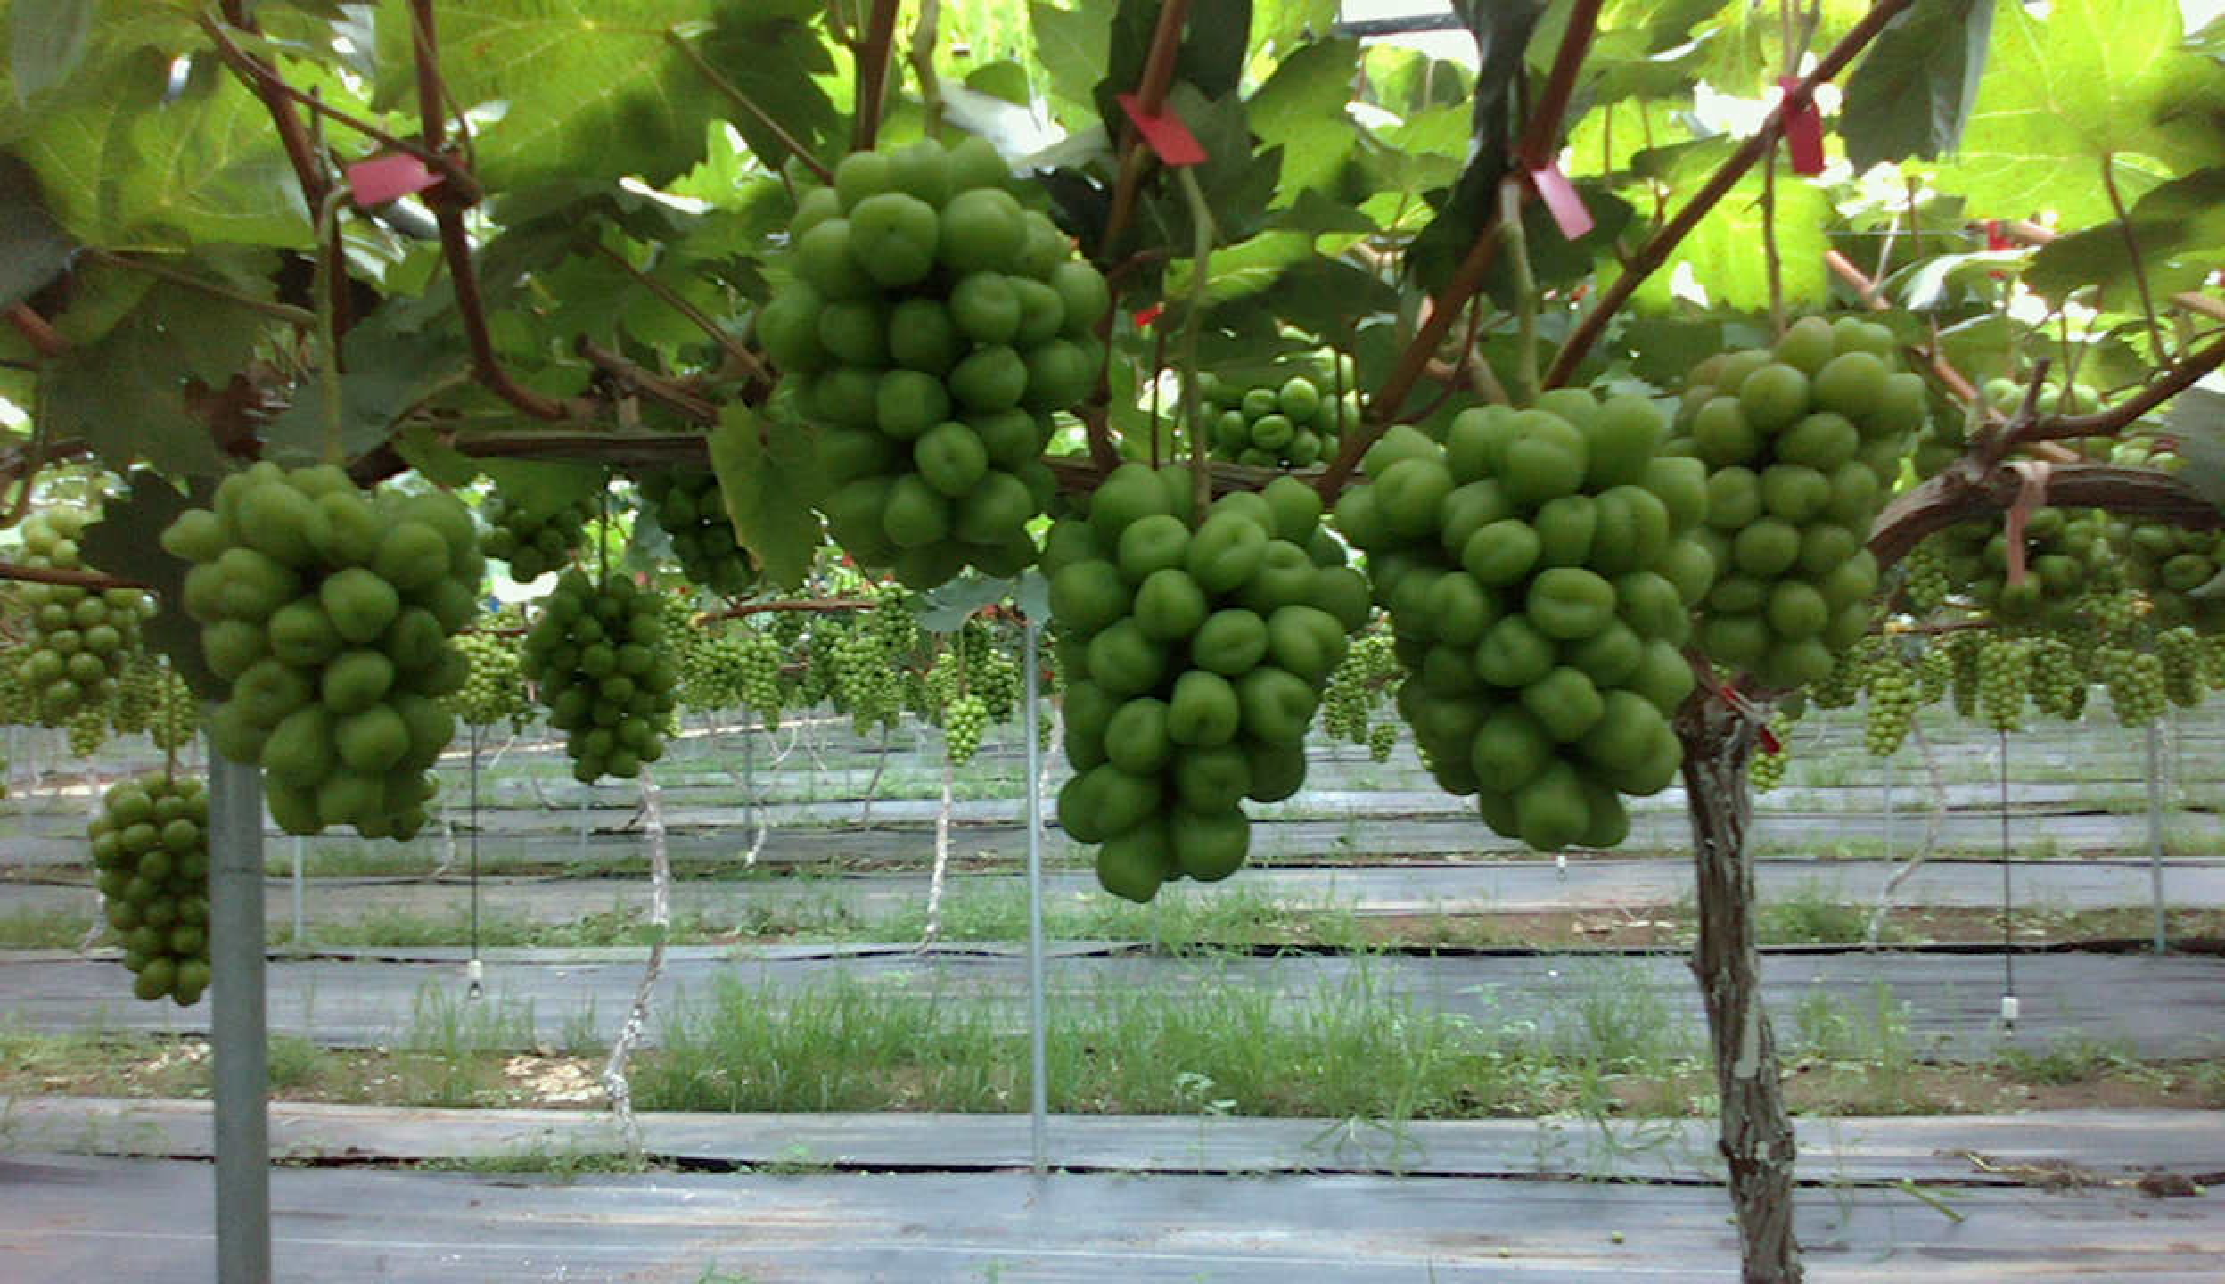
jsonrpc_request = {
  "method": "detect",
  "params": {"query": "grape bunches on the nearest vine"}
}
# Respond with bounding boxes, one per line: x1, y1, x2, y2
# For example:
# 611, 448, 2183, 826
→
1337, 385, 1713, 854
756, 134, 1109, 592
162, 460, 485, 842
1039, 462, 1369, 904
1665, 316, 1929, 692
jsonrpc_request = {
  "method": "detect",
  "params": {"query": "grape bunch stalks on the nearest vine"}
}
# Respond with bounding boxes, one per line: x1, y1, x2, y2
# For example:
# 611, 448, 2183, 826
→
1177, 164, 1214, 530
1501, 187, 1542, 410
1763, 128, 1792, 344
316, 184, 353, 467
913, 0, 945, 139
